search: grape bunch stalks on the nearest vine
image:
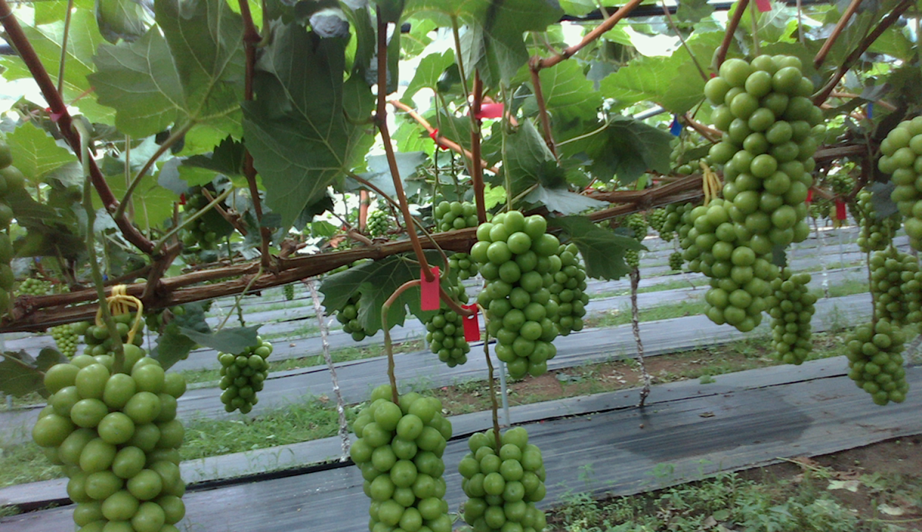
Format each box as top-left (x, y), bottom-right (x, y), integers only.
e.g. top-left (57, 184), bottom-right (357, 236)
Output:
top-left (380, 279), bottom-right (420, 404)
top-left (500, 81), bottom-right (513, 211)
top-left (478, 304), bottom-right (502, 448)
top-left (73, 117), bottom-right (123, 372)
top-left (750, 0), bottom-right (760, 55)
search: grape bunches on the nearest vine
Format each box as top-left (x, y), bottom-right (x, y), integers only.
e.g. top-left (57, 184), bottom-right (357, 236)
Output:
top-left (686, 199), bottom-right (779, 332)
top-left (878, 115), bottom-right (921, 253)
top-left (702, 55), bottom-right (823, 257)
top-left (349, 386), bottom-right (452, 531)
top-left (30, 344), bottom-right (186, 531)
top-left (471, 212), bottom-right (561, 381)
top-left (460, 426), bottom-right (546, 531)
